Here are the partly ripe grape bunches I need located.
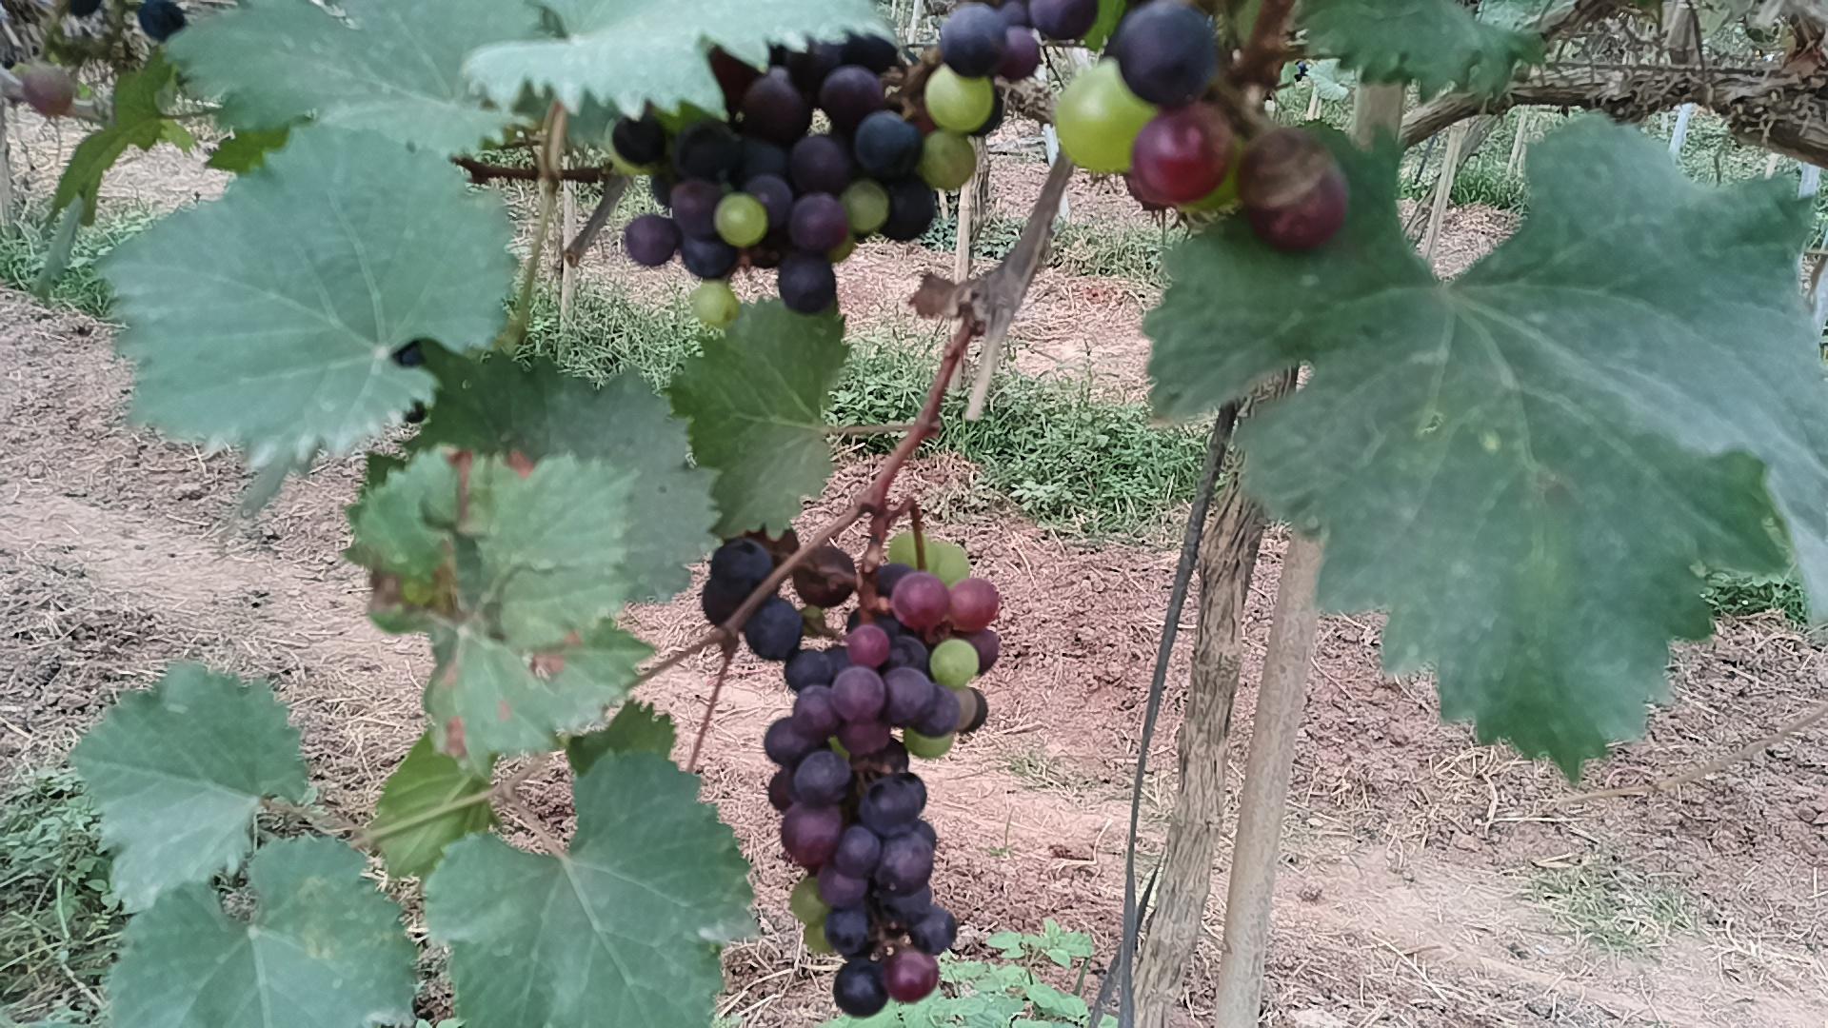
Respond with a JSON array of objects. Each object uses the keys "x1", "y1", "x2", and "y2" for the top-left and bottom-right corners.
[
  {"x1": 606, "y1": 5, "x2": 1037, "y2": 322},
  {"x1": 0, "y1": 0, "x2": 186, "y2": 121},
  {"x1": 1023, "y1": 0, "x2": 1349, "y2": 251},
  {"x1": 703, "y1": 528, "x2": 1000, "y2": 1018}
]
